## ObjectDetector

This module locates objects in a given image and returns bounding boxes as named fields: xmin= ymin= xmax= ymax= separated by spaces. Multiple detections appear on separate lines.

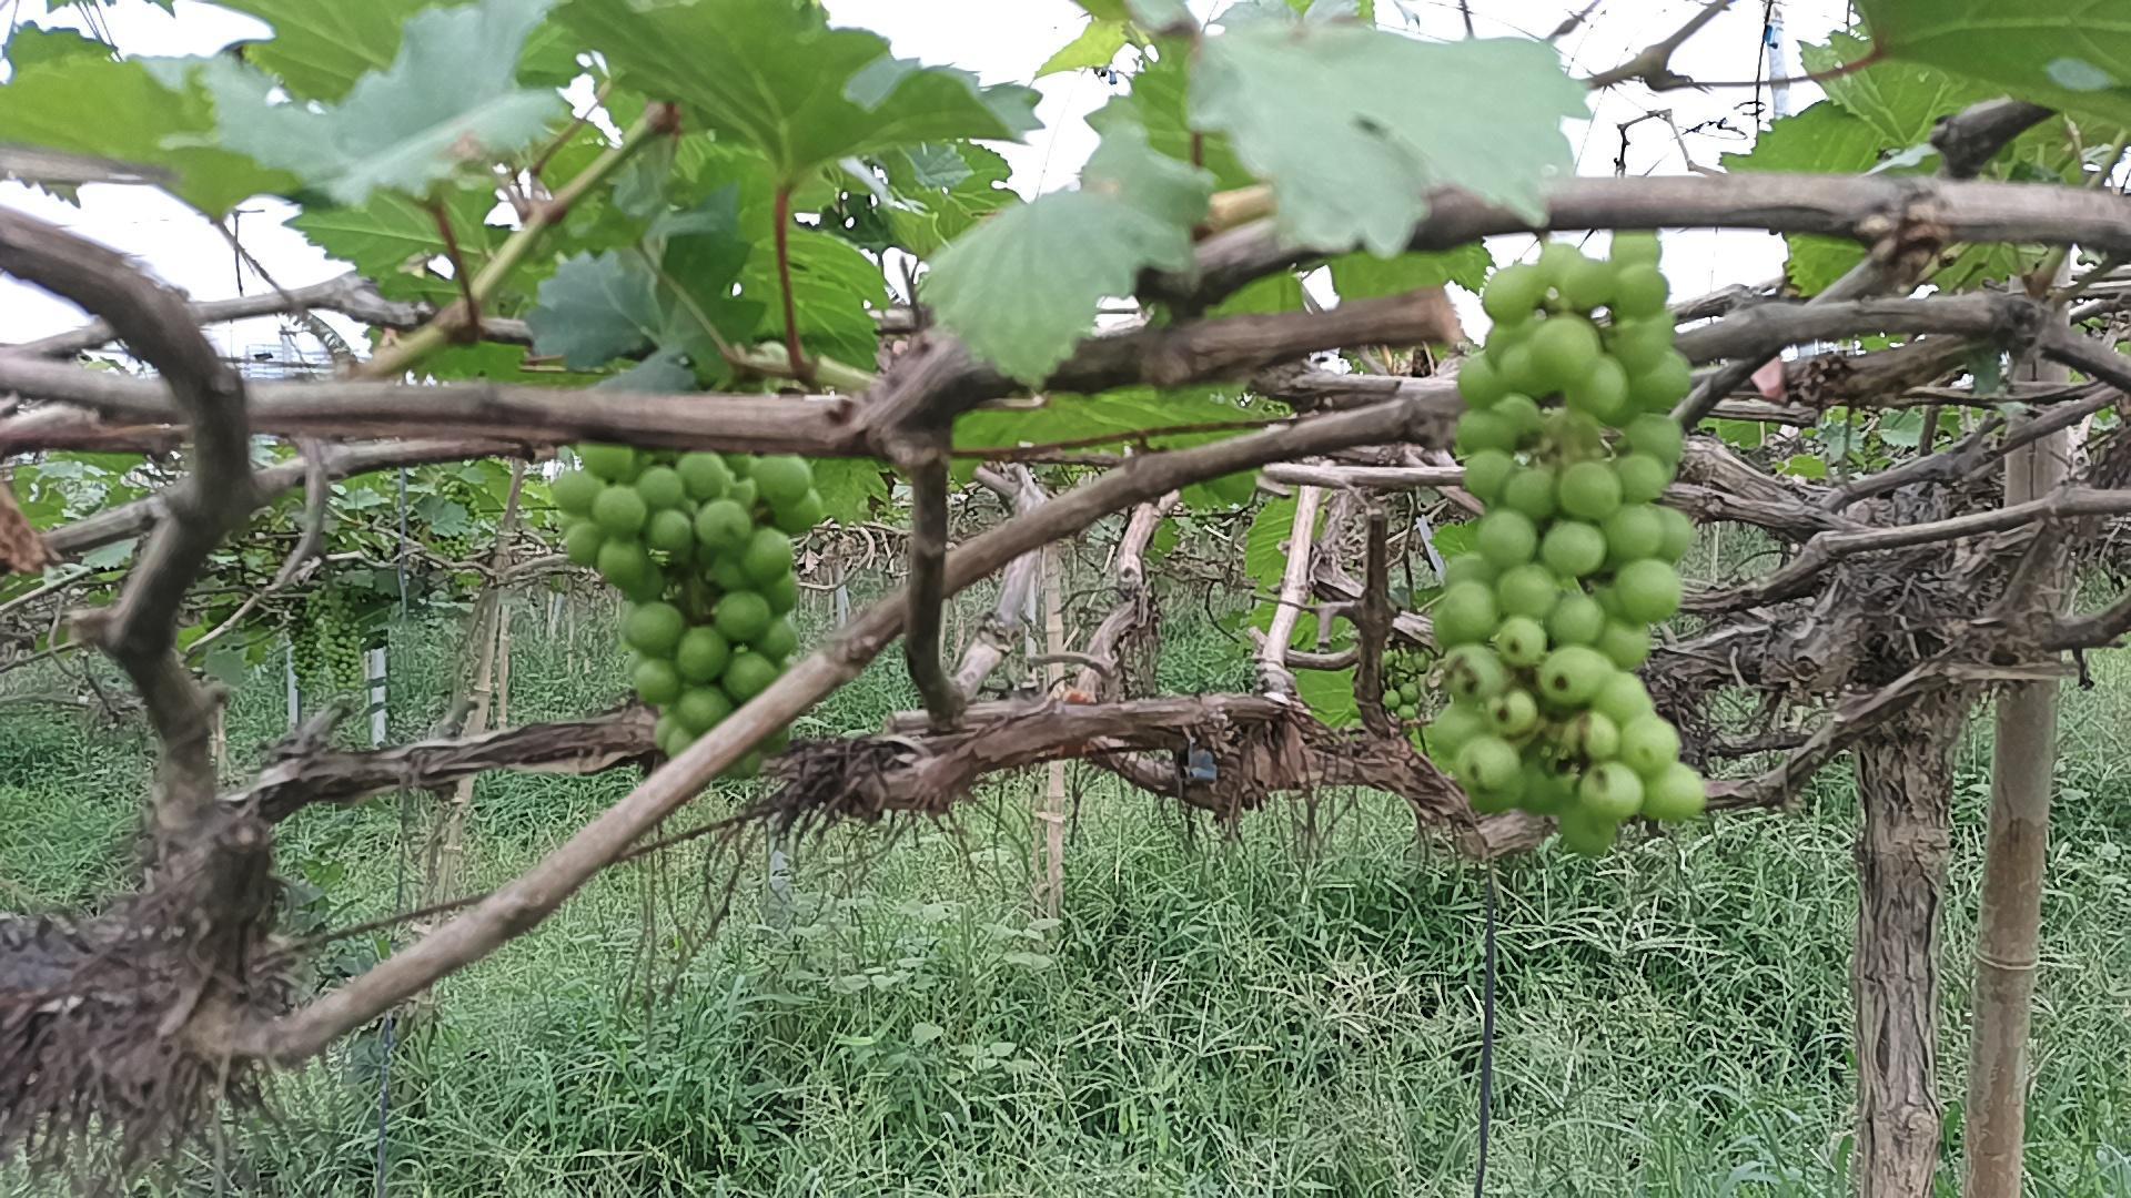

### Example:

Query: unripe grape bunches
xmin=286 ymin=587 xmax=326 ymax=704
xmin=552 ymin=441 xmax=824 ymax=779
xmin=1377 ymin=646 xmax=1433 ymax=733
xmin=320 ymin=582 xmax=362 ymax=696
xmin=1426 ymin=229 xmax=1704 ymax=855
xmin=433 ymin=474 xmax=486 ymax=556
